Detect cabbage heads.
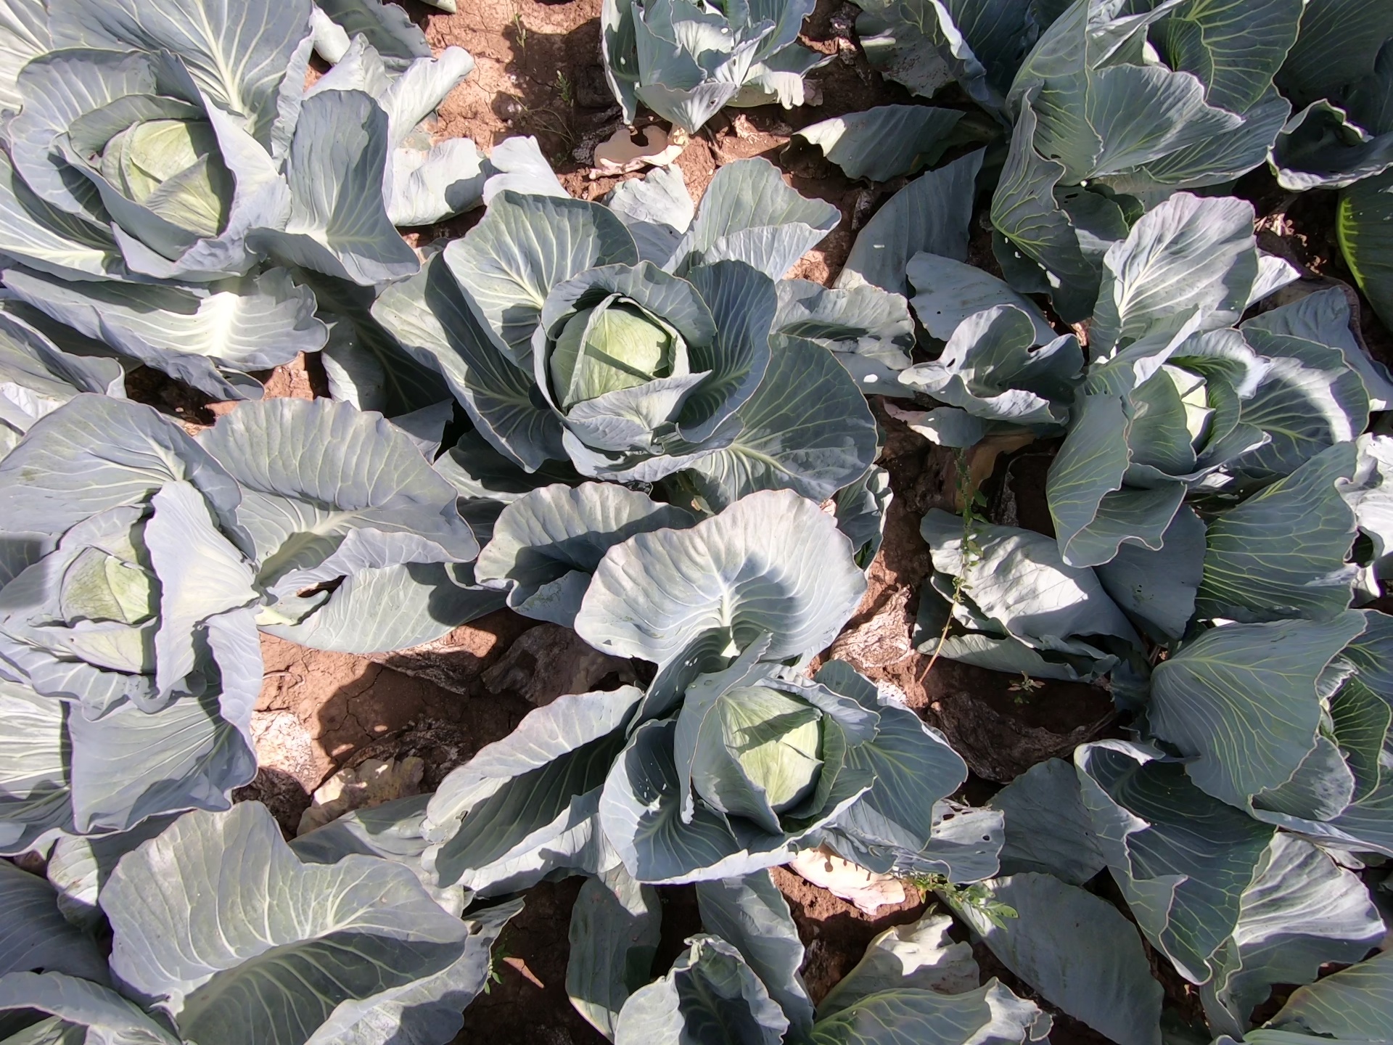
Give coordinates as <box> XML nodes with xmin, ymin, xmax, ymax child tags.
<box><xmin>1193</xmin><ymin>665</ymin><xmax>1336</xmax><ymax>795</ymax></box>
<box><xmin>102</xmin><ymin>108</ymin><xmax>278</xmax><ymax>263</ymax></box>
<box><xmin>687</xmin><ymin>678</ymin><xmax>833</xmax><ymax>818</ymax></box>
<box><xmin>641</xmin><ymin>1</ymin><xmax>738</xmax><ymax>106</ymax></box>
<box><xmin>61</xmin><ymin>519</ymin><xmax>242</xmax><ymax>675</ymax></box>
<box><xmin>550</xmin><ymin>301</ymin><xmax>691</xmax><ymax>440</ymax></box>
<box><xmin>1049</xmin><ymin>30</ymin><xmax>1170</xmax><ymax>142</ymax></box>
<box><xmin>1106</xmin><ymin>361</ymin><xmax>1217</xmax><ymax>460</ymax></box>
